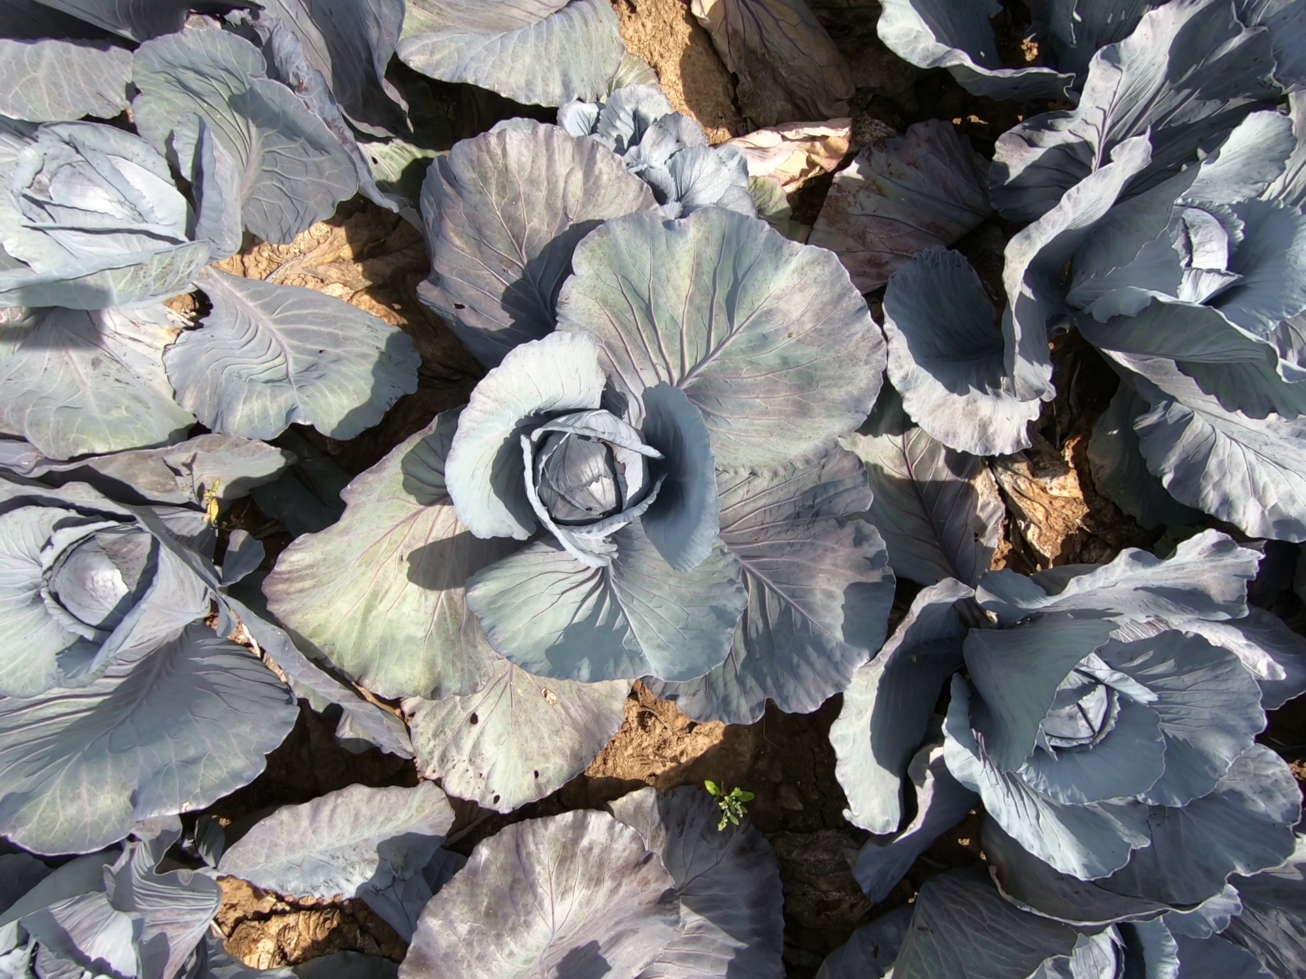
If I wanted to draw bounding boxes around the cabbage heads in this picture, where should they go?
[29,869,180,976]
[47,152,183,261]
[48,526,194,642]
[1093,203,1230,314]
[999,642,1118,747]
[531,412,650,533]
[1005,899,1122,976]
